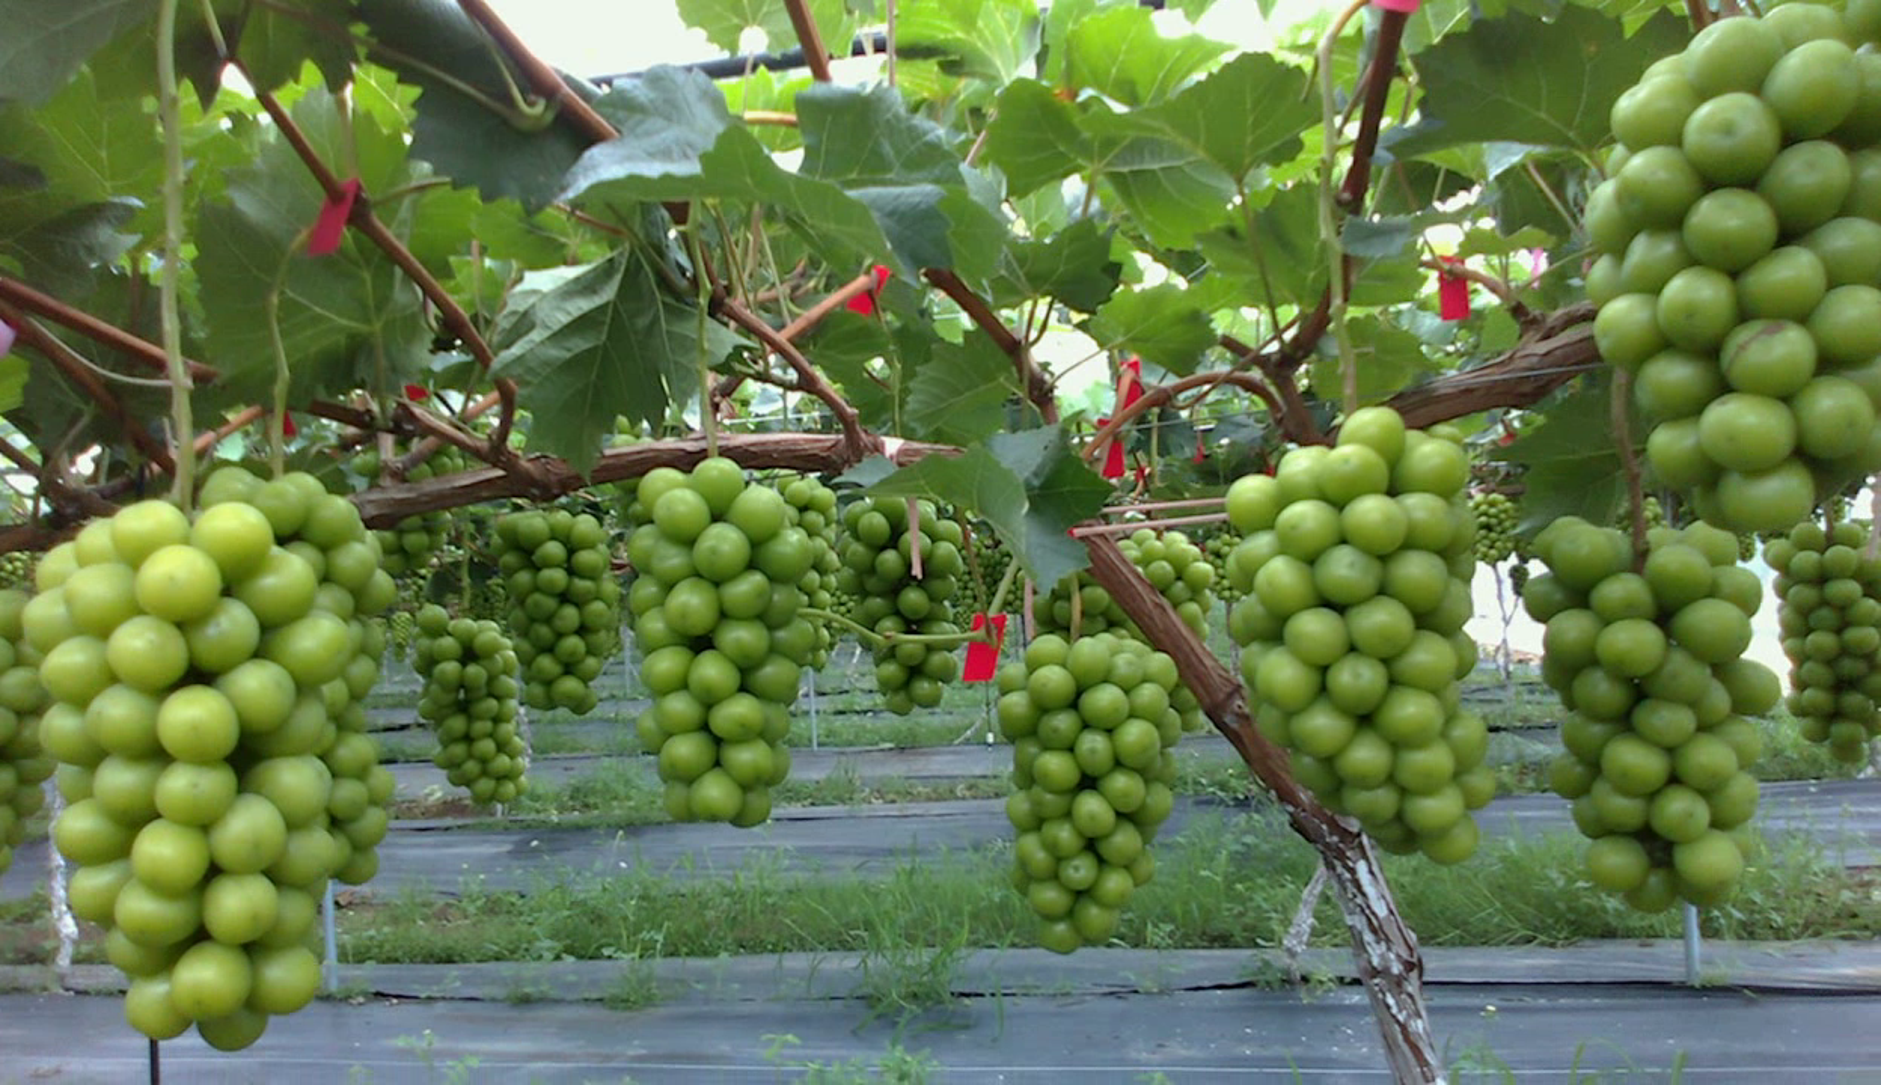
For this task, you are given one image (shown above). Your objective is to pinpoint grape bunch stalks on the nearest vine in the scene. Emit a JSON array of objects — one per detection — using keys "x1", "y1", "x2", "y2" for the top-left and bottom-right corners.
[
  {"x1": 1070, "y1": 576, "x2": 1079, "y2": 642},
  {"x1": 267, "y1": 229, "x2": 307, "y2": 476},
  {"x1": 1720, "y1": 0, "x2": 1736, "y2": 17},
  {"x1": 157, "y1": 0, "x2": 194, "y2": 515},
  {"x1": 689, "y1": 197, "x2": 719, "y2": 457},
  {"x1": 1613, "y1": 369, "x2": 1649, "y2": 573},
  {"x1": 1317, "y1": 0, "x2": 1367, "y2": 423}
]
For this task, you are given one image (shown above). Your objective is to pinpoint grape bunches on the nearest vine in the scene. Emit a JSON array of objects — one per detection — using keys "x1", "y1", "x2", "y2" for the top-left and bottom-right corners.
[
  {"x1": 1583, "y1": 0, "x2": 1879, "y2": 536},
  {"x1": 1219, "y1": 402, "x2": 1497, "y2": 865},
  {"x1": 627, "y1": 458, "x2": 817, "y2": 829},
  {"x1": 203, "y1": 466, "x2": 396, "y2": 889},
  {"x1": 996, "y1": 633, "x2": 1182, "y2": 957},
  {"x1": 1525, "y1": 515, "x2": 1783, "y2": 916},
  {"x1": 23, "y1": 499, "x2": 353, "y2": 1052}
]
